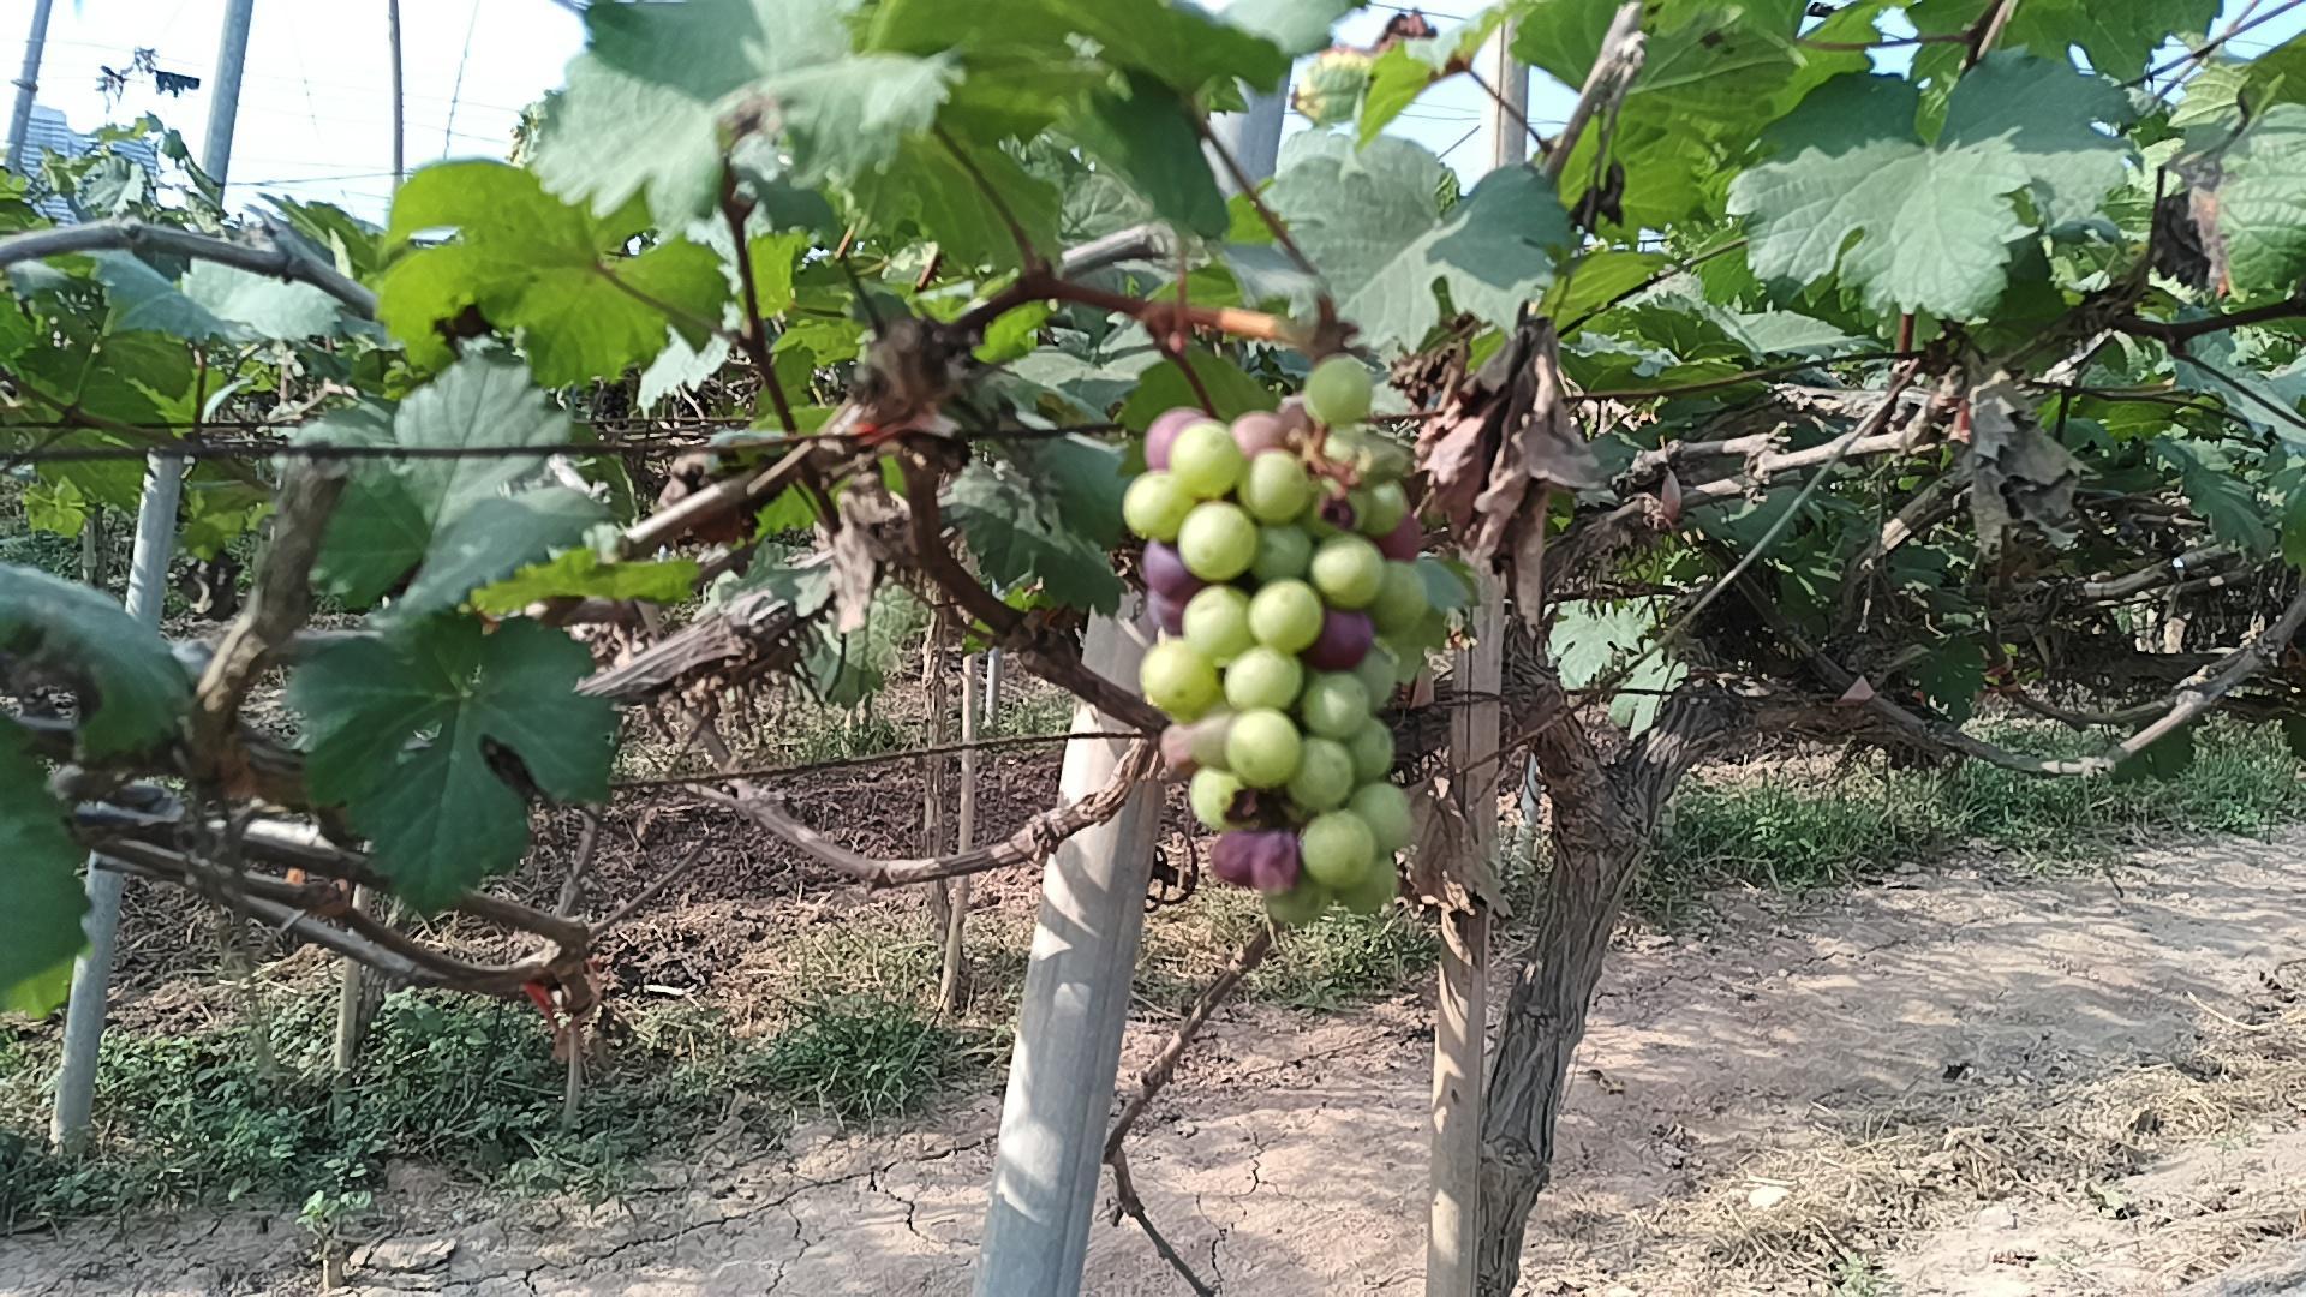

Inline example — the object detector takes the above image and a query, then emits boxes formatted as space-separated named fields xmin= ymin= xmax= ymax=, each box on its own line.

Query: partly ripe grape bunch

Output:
xmin=1123 ymin=357 xmax=1428 ymax=927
